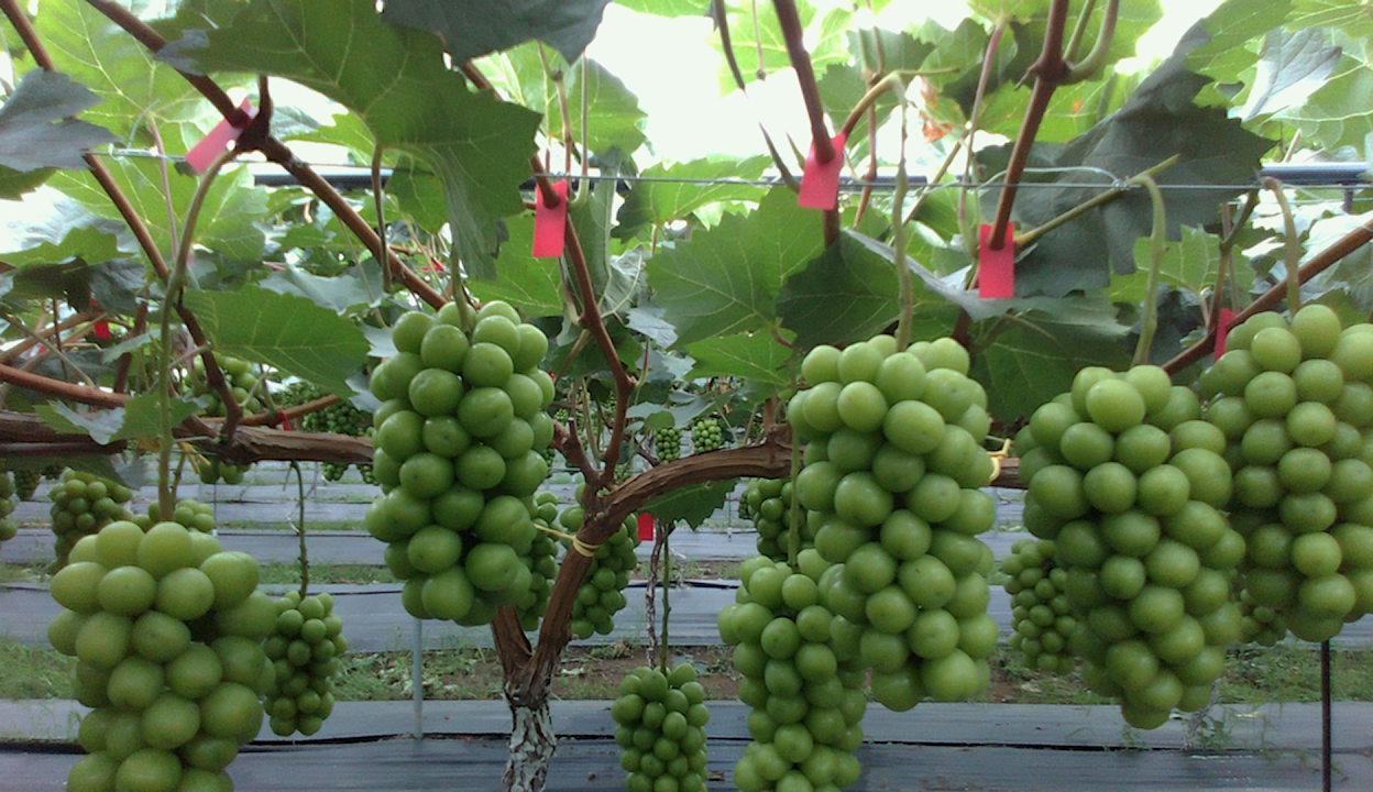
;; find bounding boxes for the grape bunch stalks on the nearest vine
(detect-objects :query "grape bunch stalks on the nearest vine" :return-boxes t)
[787,437,798,572]
[449,249,473,335]
[891,79,912,350]
[1134,174,1163,365]
[158,152,233,520]
[1261,176,1299,317]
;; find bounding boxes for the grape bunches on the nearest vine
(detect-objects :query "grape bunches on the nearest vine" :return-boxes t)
[786,333,997,714]
[1010,364,1245,728]
[1202,306,1372,641]
[46,521,277,790]
[364,301,557,626]
[717,550,867,791]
